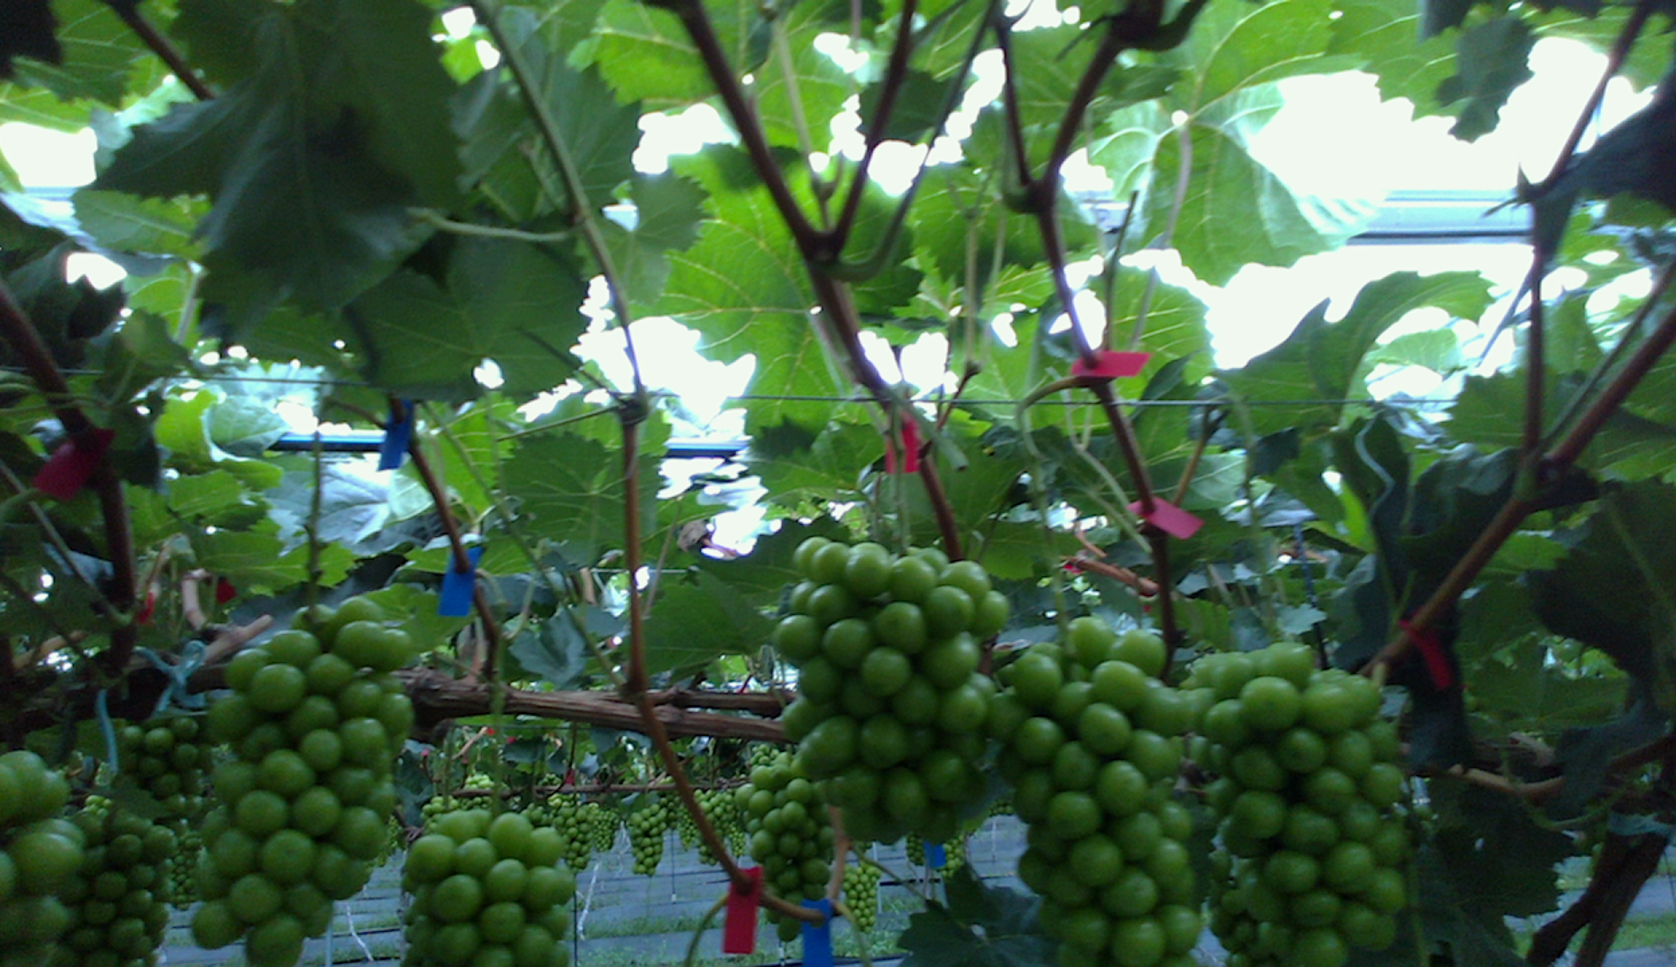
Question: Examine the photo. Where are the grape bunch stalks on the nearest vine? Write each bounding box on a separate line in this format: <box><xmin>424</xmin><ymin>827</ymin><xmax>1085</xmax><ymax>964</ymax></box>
<box><xmin>302</xmin><ymin>432</ymin><xmax>326</xmax><ymax>631</ymax></box>
<box><xmin>889</xmin><ymin>384</ymin><xmax>909</xmax><ymax>553</ymax></box>
<box><xmin>1015</xmin><ymin>385</ymin><xmax>1081</xmax><ymax>678</ymax></box>
<box><xmin>477</xmin><ymin>568</ymin><xmax>506</xmax><ymax>817</ymax></box>
<box><xmin>1168</xmin><ymin>398</ymin><xmax>1276</xmax><ymax>647</ymax></box>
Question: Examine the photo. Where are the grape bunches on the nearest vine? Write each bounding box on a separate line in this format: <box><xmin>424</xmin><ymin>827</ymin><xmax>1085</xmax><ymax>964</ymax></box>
<box><xmin>404</xmin><ymin>810</ymin><xmax>575</xmax><ymax>966</ymax></box>
<box><xmin>772</xmin><ymin>539</ymin><xmax>1013</xmax><ymax>845</ymax></box>
<box><xmin>192</xmin><ymin>598</ymin><xmax>414</xmax><ymax>966</ymax></box>
<box><xmin>994</xmin><ymin>615</ymin><xmax>1199</xmax><ymax>966</ymax></box>
<box><xmin>1182</xmin><ymin>641</ymin><xmax>1406</xmax><ymax>964</ymax></box>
